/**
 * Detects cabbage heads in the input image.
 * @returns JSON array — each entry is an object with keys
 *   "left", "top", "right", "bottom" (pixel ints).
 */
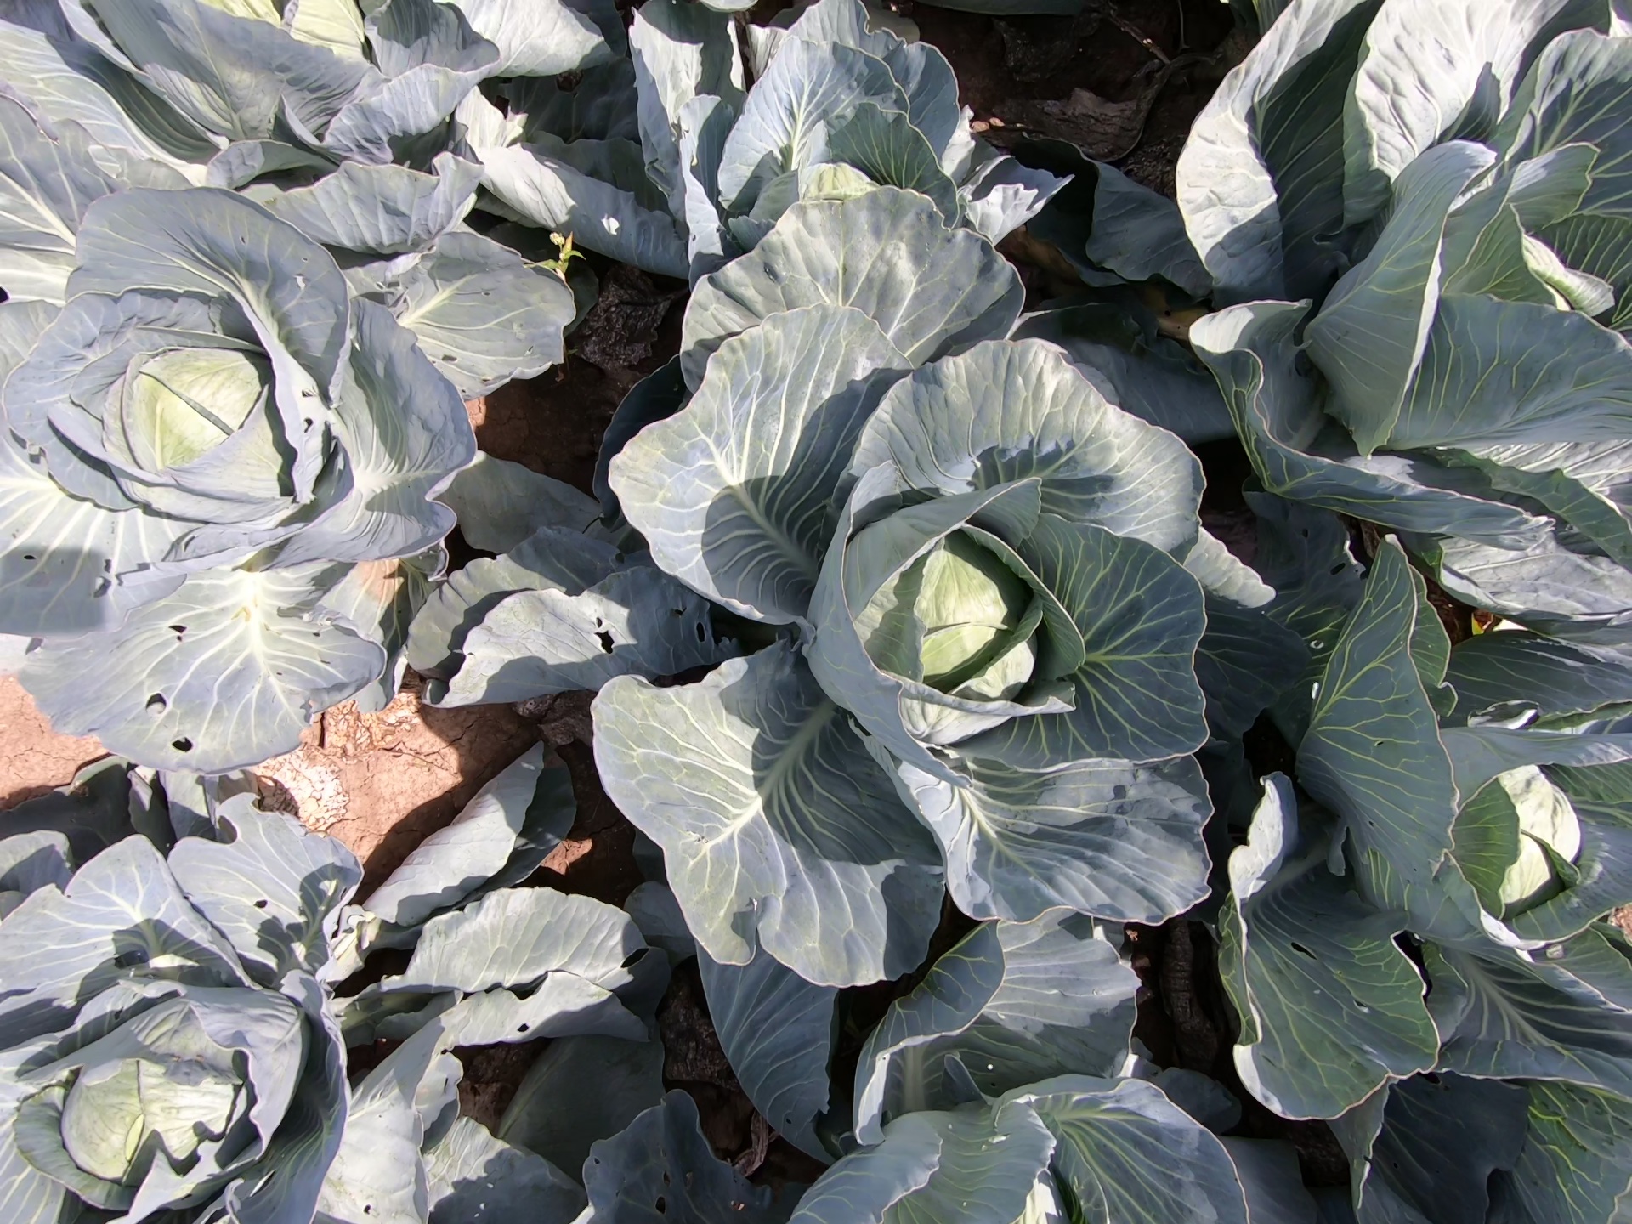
[
  {"left": 853, "top": 1113, "right": 1074, "bottom": 1222},
  {"left": 808, "top": 510, "right": 1040, "bottom": 745},
  {"left": 101, "top": 343, "right": 326, "bottom": 523},
  {"left": 1359, "top": 220, "right": 1582, "bottom": 405},
  {"left": 57, "top": 998, "right": 298, "bottom": 1198},
  {"left": 745, "top": 161, "right": 894, "bottom": 262},
  {"left": 116, "top": 4, "right": 367, "bottom": 136},
  {"left": 1368, "top": 737, "right": 1584, "bottom": 940}
]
